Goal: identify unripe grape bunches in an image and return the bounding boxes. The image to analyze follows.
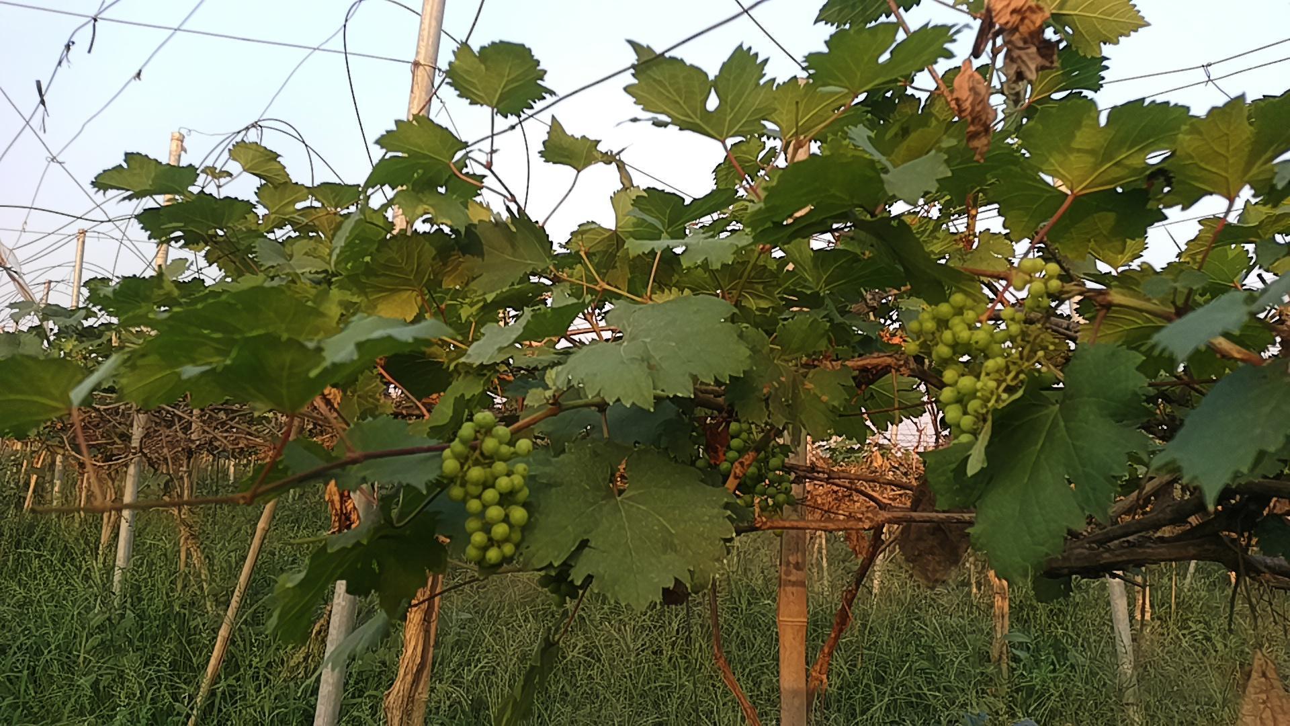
[693,415,794,514]
[906,259,1068,437]
[441,411,532,567]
